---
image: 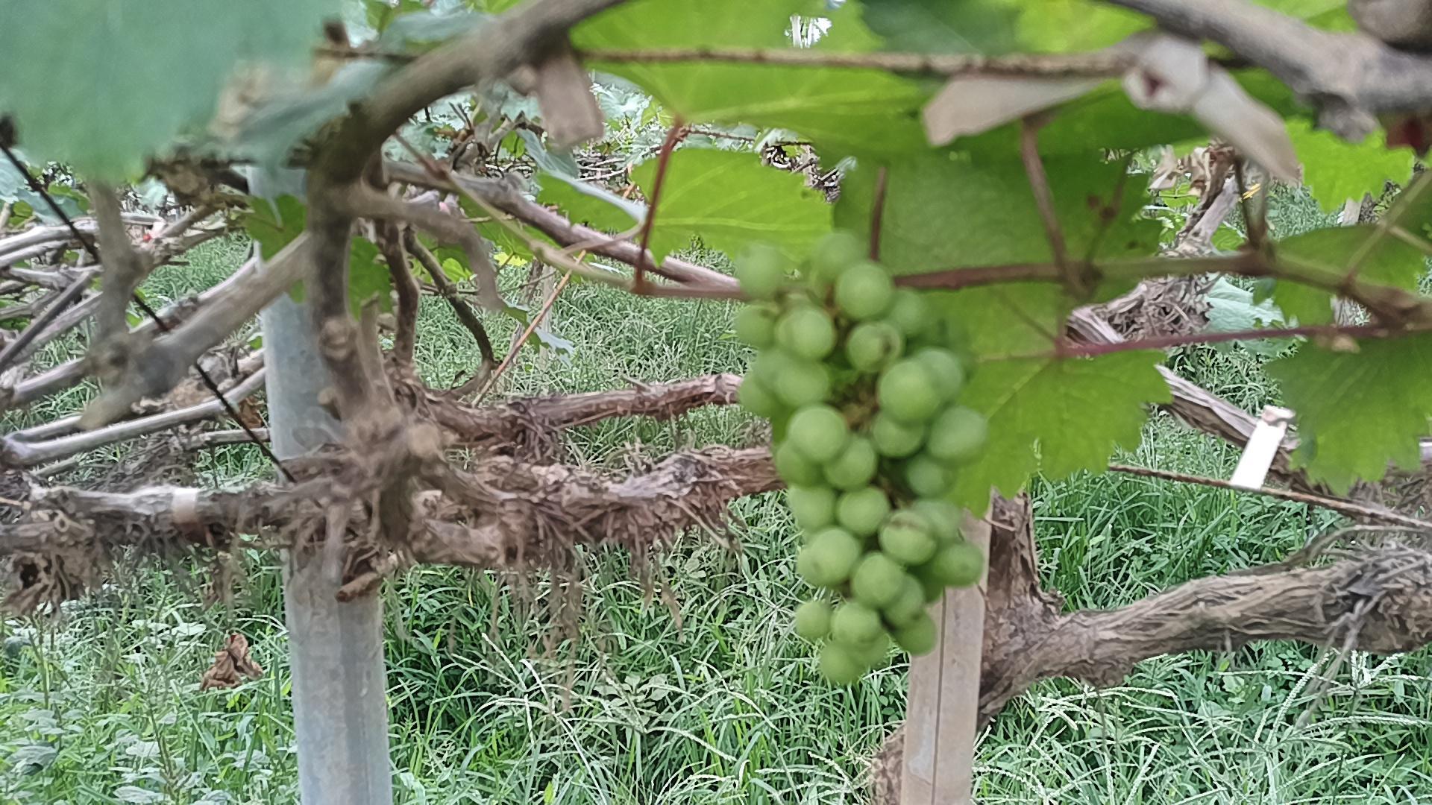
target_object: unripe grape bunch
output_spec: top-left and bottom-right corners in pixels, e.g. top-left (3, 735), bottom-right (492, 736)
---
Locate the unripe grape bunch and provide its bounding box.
top-left (734, 233), bottom-right (985, 682)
